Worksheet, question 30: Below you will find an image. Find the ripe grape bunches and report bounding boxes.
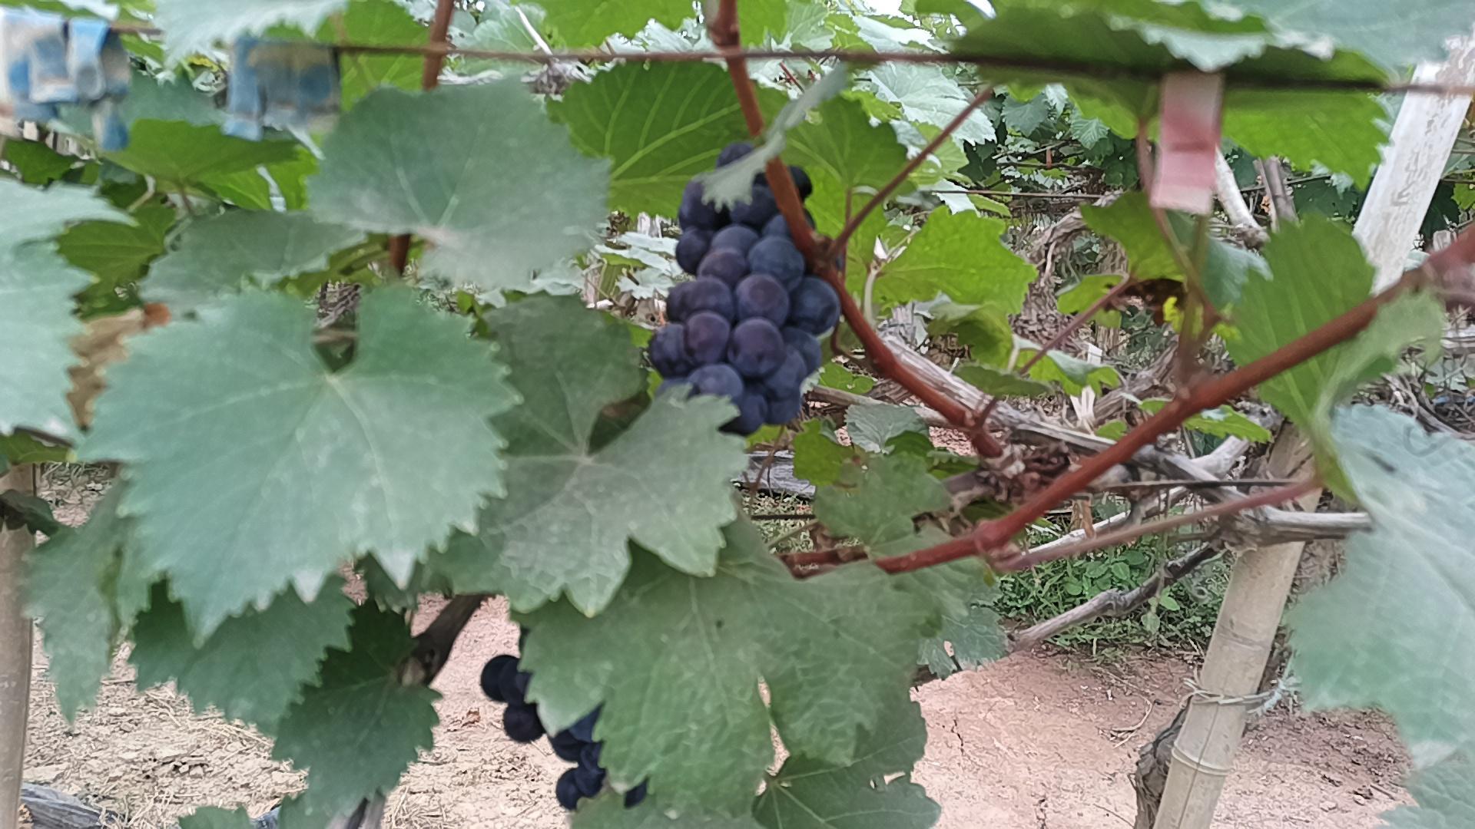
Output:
[480,655,608,811]
[648,141,850,435]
